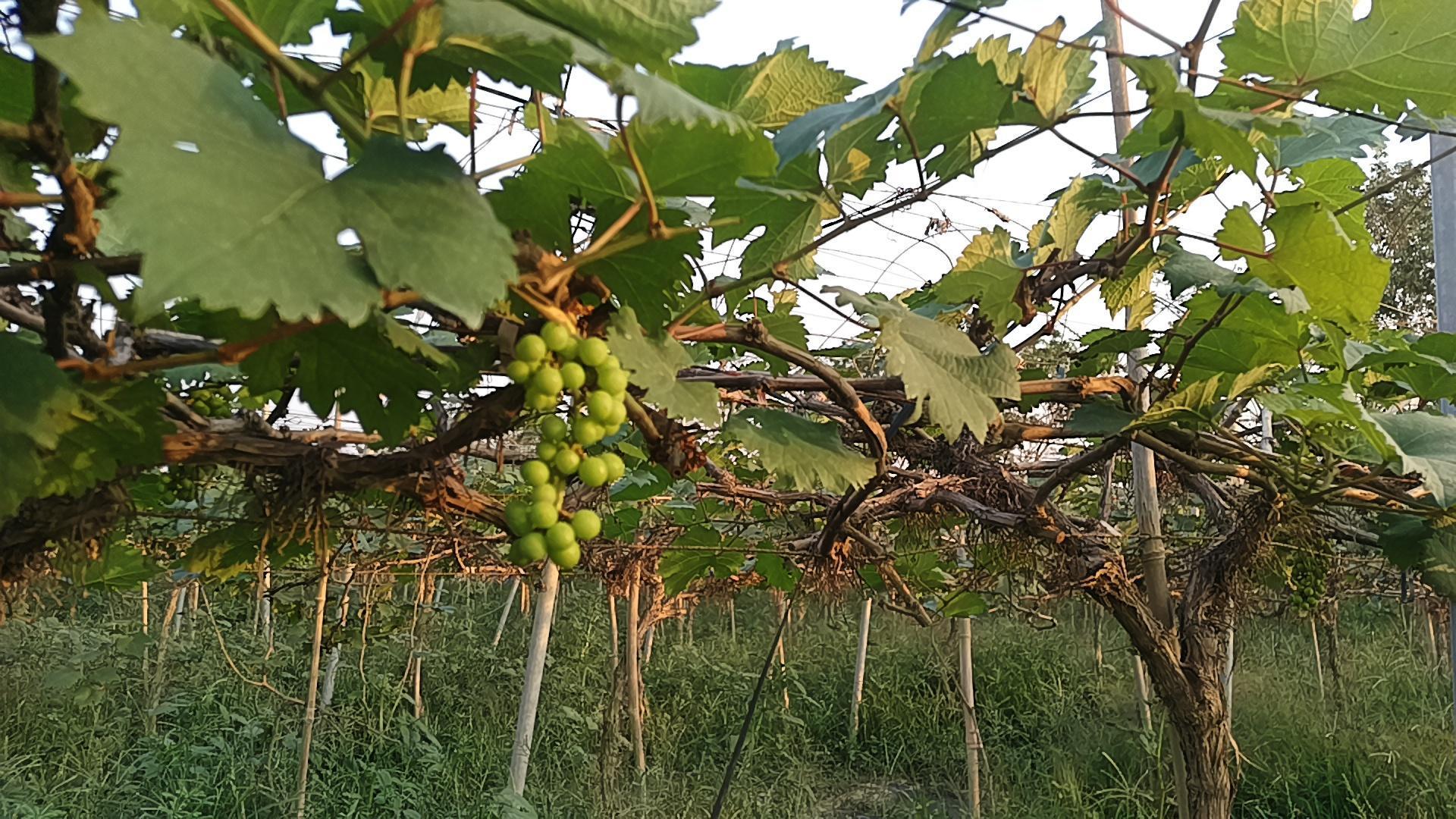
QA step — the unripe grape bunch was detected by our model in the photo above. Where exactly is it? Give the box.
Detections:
[506,322,626,570]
